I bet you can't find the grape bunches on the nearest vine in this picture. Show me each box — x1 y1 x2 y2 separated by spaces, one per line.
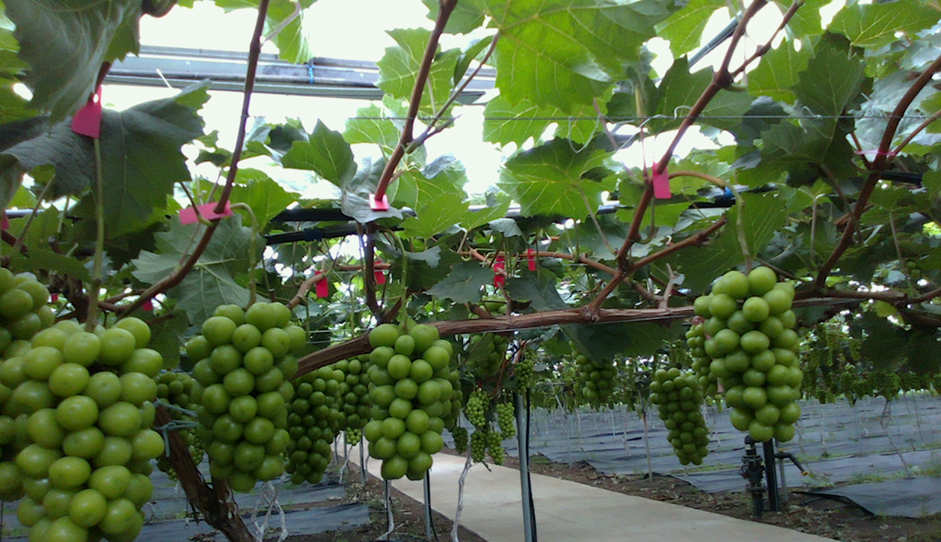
364 319 453 480
185 302 306 490
14 316 166 541
694 266 803 442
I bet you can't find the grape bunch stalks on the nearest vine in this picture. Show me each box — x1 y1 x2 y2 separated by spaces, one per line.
667 170 752 276
229 202 258 309
374 225 408 334
85 139 104 333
